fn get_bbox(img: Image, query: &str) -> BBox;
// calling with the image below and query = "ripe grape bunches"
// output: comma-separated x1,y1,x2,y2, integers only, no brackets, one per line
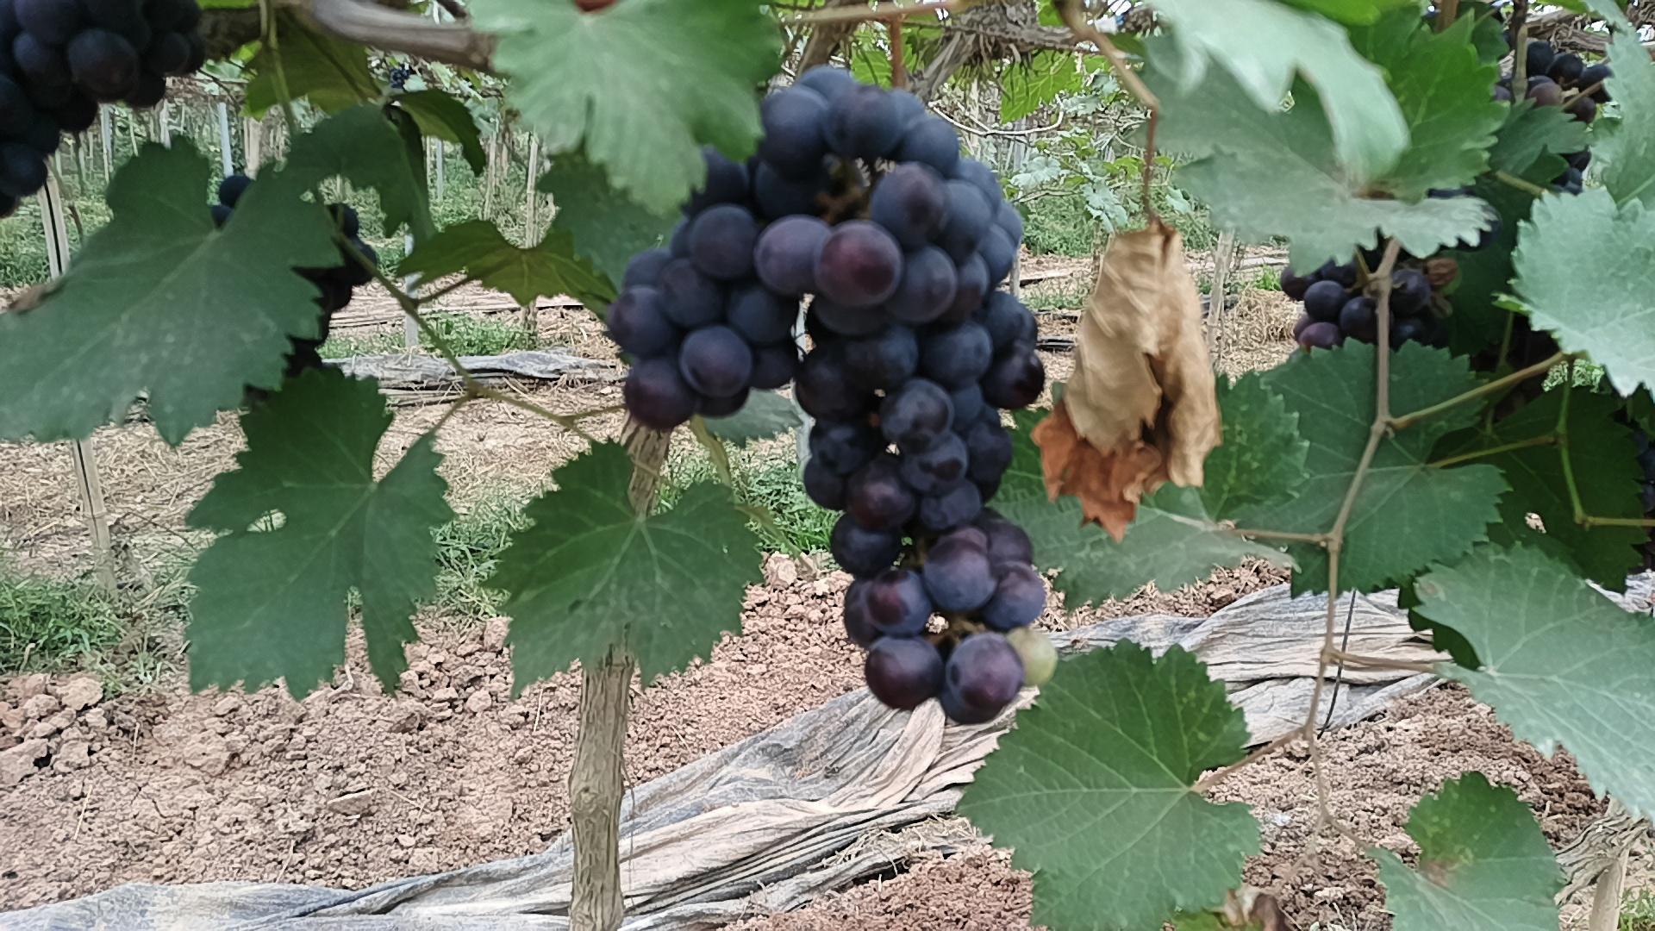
1489,4,1614,197
211,173,377,382
0,0,205,217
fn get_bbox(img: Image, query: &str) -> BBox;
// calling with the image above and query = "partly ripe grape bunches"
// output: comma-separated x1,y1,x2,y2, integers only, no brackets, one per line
607,67,1054,725
1280,188,1502,352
